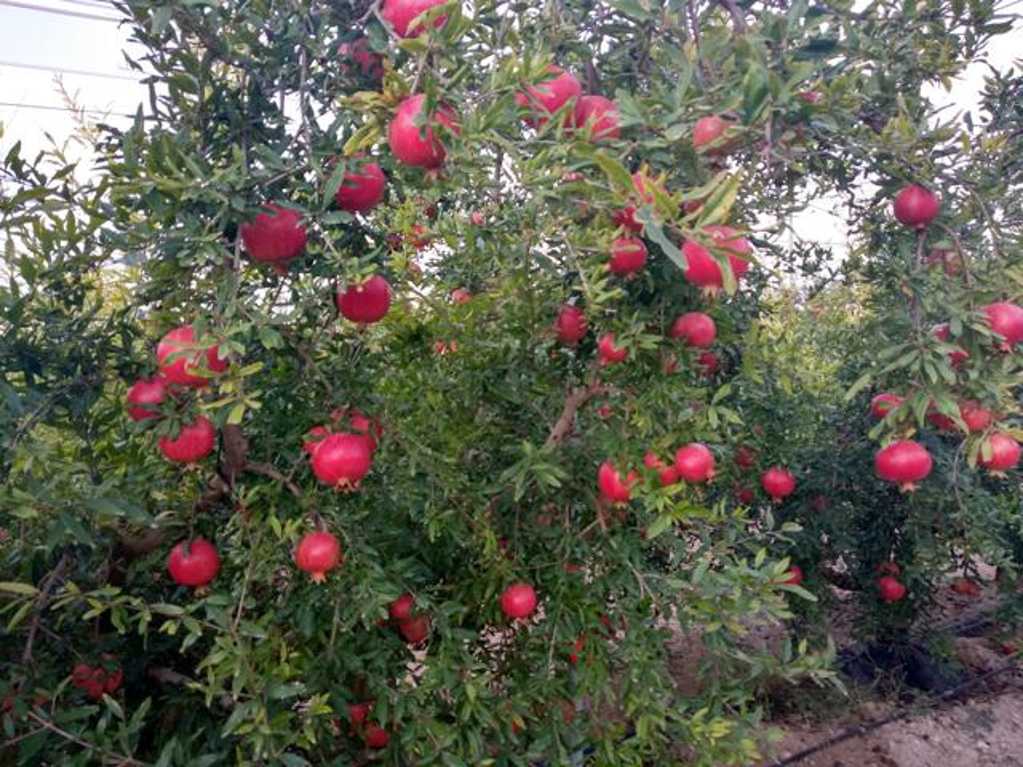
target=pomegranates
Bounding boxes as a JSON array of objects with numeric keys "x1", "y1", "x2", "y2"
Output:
[
  {"x1": 556, "y1": 304, "x2": 588, "y2": 350},
  {"x1": 168, "y1": 540, "x2": 219, "y2": 599},
  {"x1": 980, "y1": 300, "x2": 1023, "y2": 353},
  {"x1": 761, "y1": 465, "x2": 796, "y2": 507},
  {"x1": 125, "y1": 377, "x2": 169, "y2": 422},
  {"x1": 871, "y1": 390, "x2": 902, "y2": 419},
  {"x1": 697, "y1": 350, "x2": 718, "y2": 376},
  {"x1": 385, "y1": 594, "x2": 411, "y2": 620},
  {"x1": 334, "y1": 163, "x2": 388, "y2": 211},
  {"x1": 925, "y1": 412, "x2": 951, "y2": 438},
  {"x1": 70, "y1": 658, "x2": 123, "y2": 700},
  {"x1": 668, "y1": 312, "x2": 718, "y2": 345},
  {"x1": 336, "y1": 38, "x2": 385, "y2": 77},
  {"x1": 691, "y1": 113, "x2": 730, "y2": 145},
  {"x1": 894, "y1": 184, "x2": 938, "y2": 240},
  {"x1": 157, "y1": 409, "x2": 217, "y2": 475},
  {"x1": 646, "y1": 449, "x2": 679, "y2": 487},
  {"x1": 609, "y1": 174, "x2": 655, "y2": 232},
  {"x1": 296, "y1": 531, "x2": 340, "y2": 586},
  {"x1": 299, "y1": 425, "x2": 329, "y2": 462},
  {"x1": 312, "y1": 430, "x2": 372, "y2": 492},
  {"x1": 673, "y1": 441, "x2": 716, "y2": 483},
  {"x1": 380, "y1": 0, "x2": 446, "y2": 38},
  {"x1": 873, "y1": 439, "x2": 935, "y2": 499},
  {"x1": 596, "y1": 457, "x2": 638, "y2": 508},
  {"x1": 396, "y1": 617, "x2": 427, "y2": 647},
  {"x1": 959, "y1": 401, "x2": 994, "y2": 430},
  {"x1": 345, "y1": 703, "x2": 366, "y2": 735},
  {"x1": 596, "y1": 331, "x2": 627, "y2": 368},
  {"x1": 336, "y1": 273, "x2": 392, "y2": 337},
  {"x1": 678, "y1": 225, "x2": 748, "y2": 300},
  {"x1": 609, "y1": 236, "x2": 651, "y2": 283},
  {"x1": 878, "y1": 574, "x2": 906, "y2": 602},
  {"x1": 331, "y1": 409, "x2": 380, "y2": 457},
  {"x1": 364, "y1": 721, "x2": 388, "y2": 748},
  {"x1": 387, "y1": 94, "x2": 462, "y2": 171},
  {"x1": 155, "y1": 323, "x2": 227, "y2": 388},
  {"x1": 499, "y1": 583, "x2": 539, "y2": 617},
  {"x1": 240, "y1": 200, "x2": 305, "y2": 280},
  {"x1": 980, "y1": 430, "x2": 1023, "y2": 479},
  {"x1": 515, "y1": 66, "x2": 582, "y2": 126},
  {"x1": 783, "y1": 561, "x2": 801, "y2": 586},
  {"x1": 564, "y1": 93, "x2": 620, "y2": 139}
]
